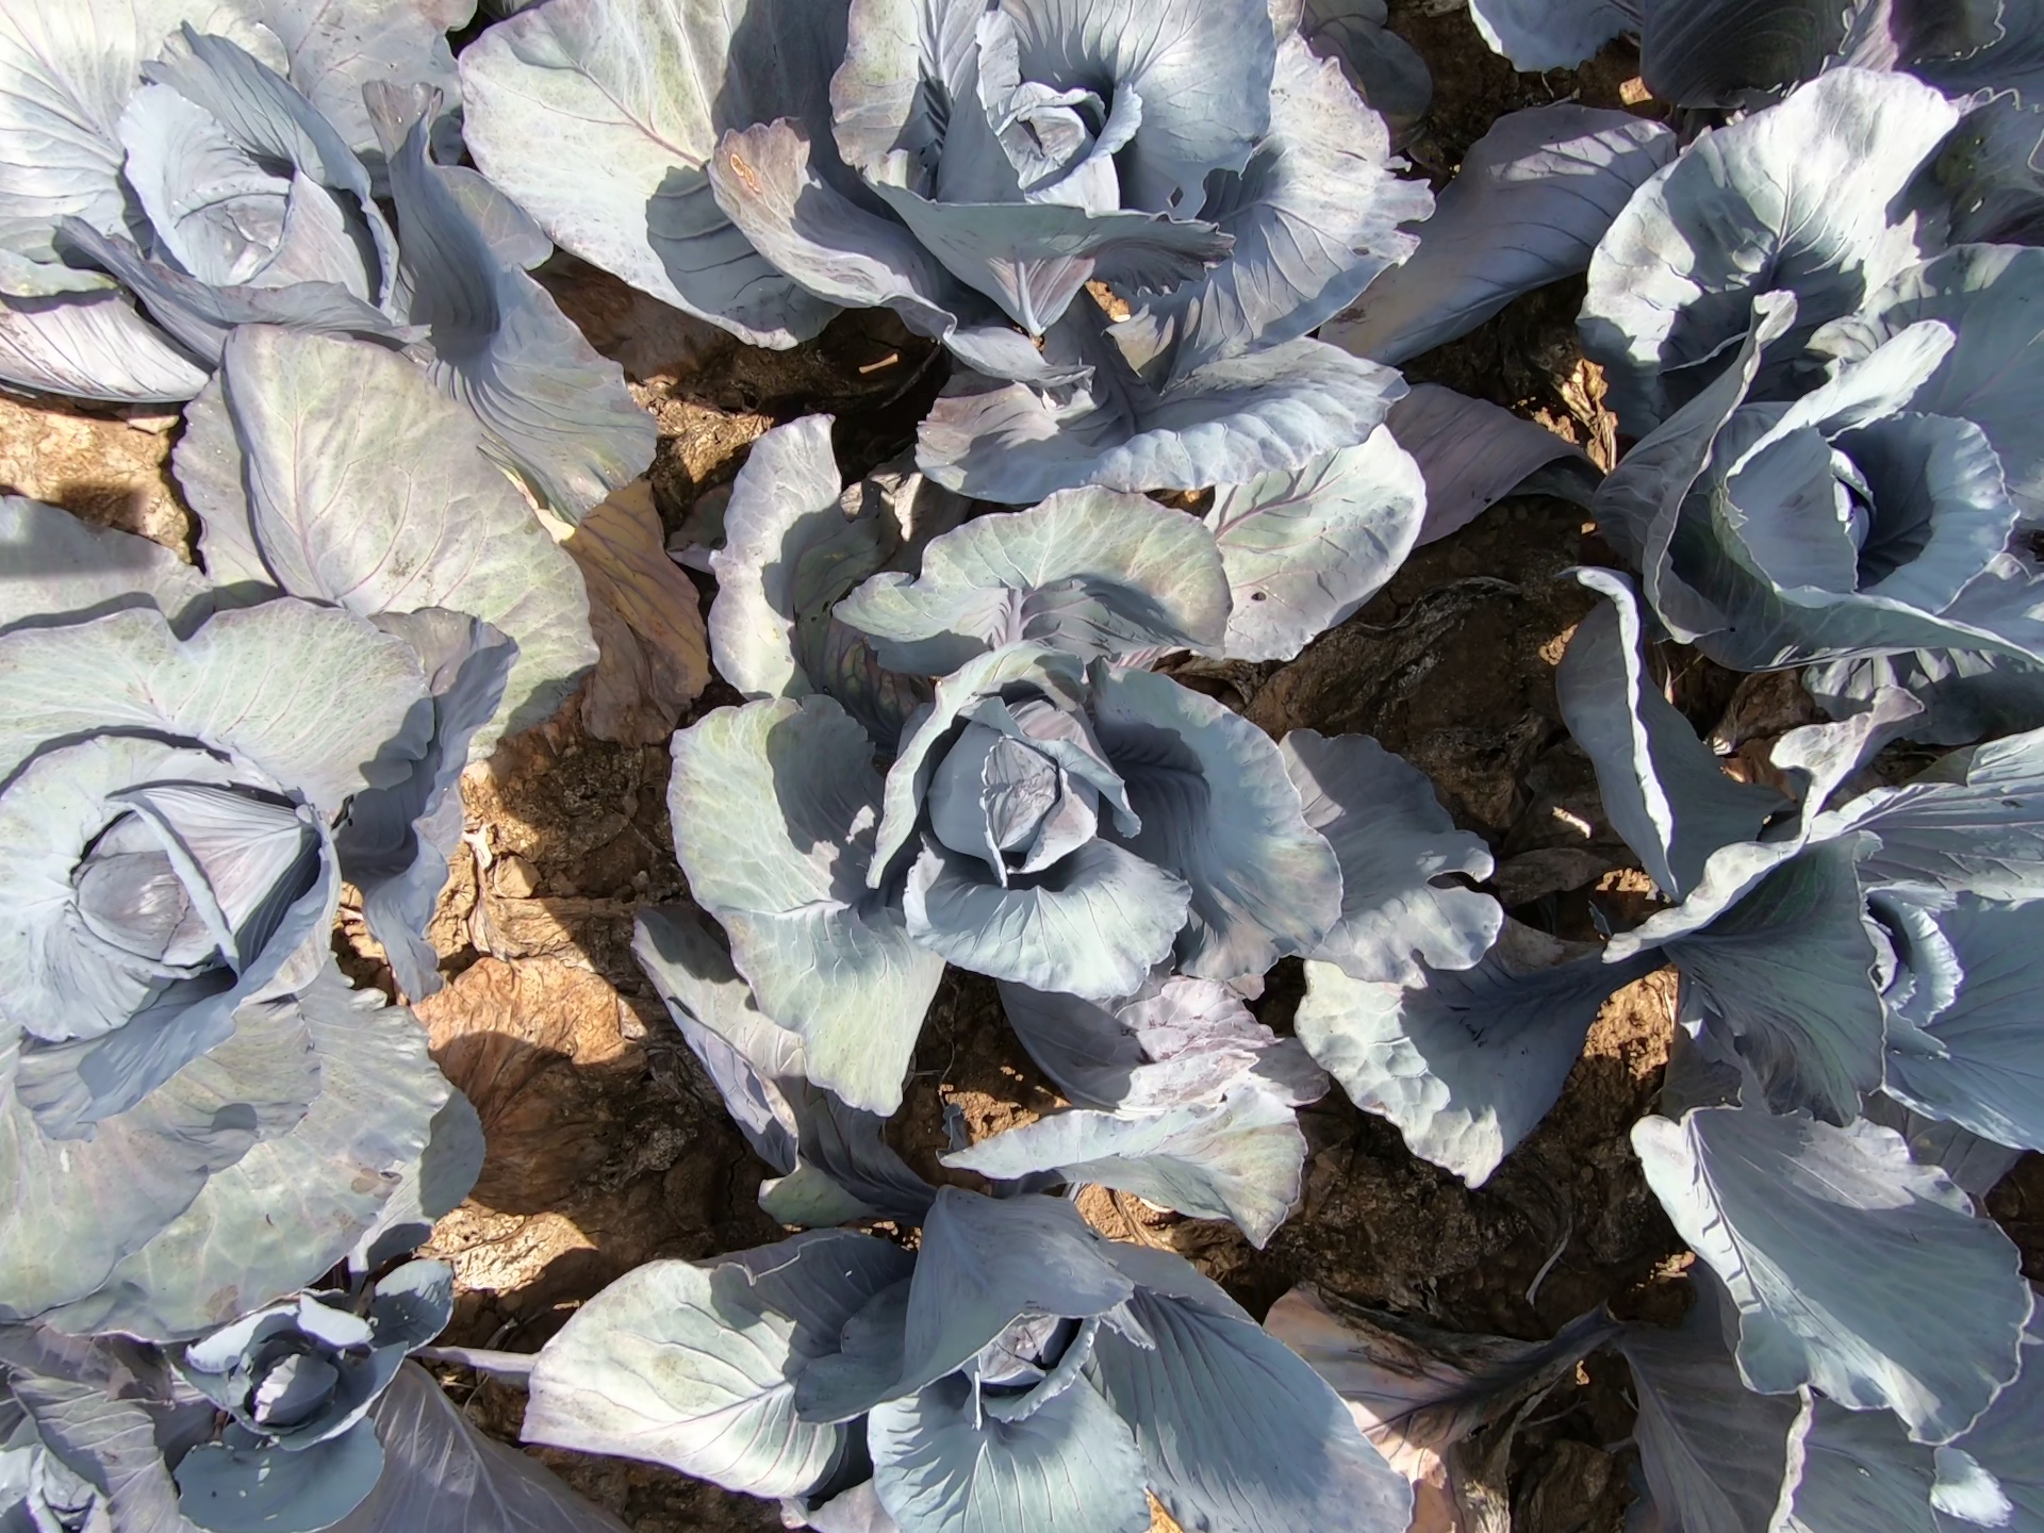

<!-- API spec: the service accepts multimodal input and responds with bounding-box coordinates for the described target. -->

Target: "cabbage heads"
[1728,434,1877,574]
[147,171,378,364]
[940,89,1122,294]
[947,707,1102,852]
[69,790,299,979]
[1764,892,1901,1022]
[925,1213,1090,1388]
